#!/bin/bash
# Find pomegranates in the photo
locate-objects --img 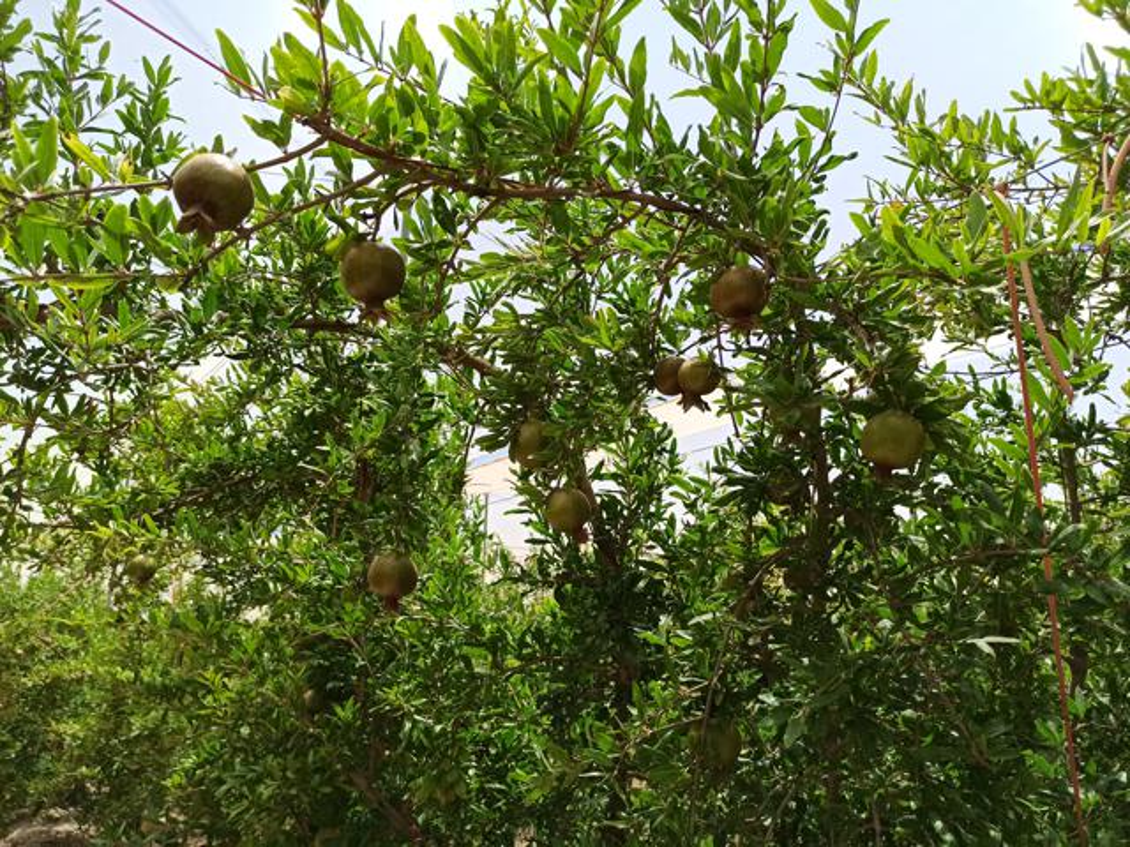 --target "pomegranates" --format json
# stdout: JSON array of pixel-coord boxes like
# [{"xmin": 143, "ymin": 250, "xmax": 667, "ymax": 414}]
[
  {"xmin": 516, "ymin": 418, "xmax": 547, "ymax": 468},
  {"xmin": 367, "ymin": 551, "xmax": 417, "ymax": 611},
  {"xmin": 689, "ymin": 723, "xmax": 740, "ymax": 764},
  {"xmin": 860, "ymin": 409, "xmax": 923, "ymax": 482},
  {"xmin": 547, "ymin": 487, "xmax": 591, "ymax": 543},
  {"xmin": 173, "ymin": 152, "xmax": 254, "ymax": 247},
  {"xmin": 653, "ymin": 355, "xmax": 687, "ymax": 395},
  {"xmin": 674, "ymin": 358, "xmax": 720, "ymax": 415},
  {"xmin": 127, "ymin": 552, "xmax": 159, "ymax": 584},
  {"xmin": 710, "ymin": 266, "xmax": 768, "ymax": 332},
  {"xmin": 339, "ymin": 240, "xmax": 406, "ymax": 328}
]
